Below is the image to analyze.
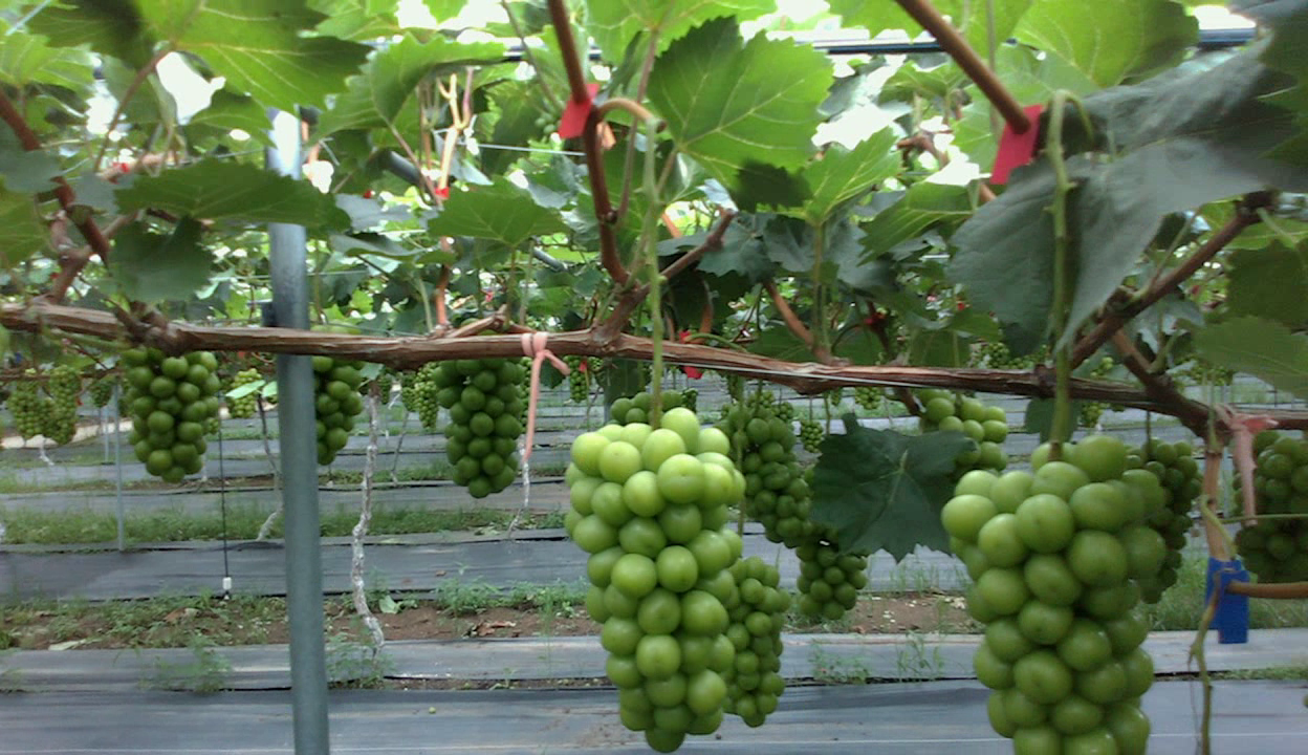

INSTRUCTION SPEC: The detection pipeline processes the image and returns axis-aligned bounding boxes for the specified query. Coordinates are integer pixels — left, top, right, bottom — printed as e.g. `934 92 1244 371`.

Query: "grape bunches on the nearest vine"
942 434 1164 754
563 408 746 752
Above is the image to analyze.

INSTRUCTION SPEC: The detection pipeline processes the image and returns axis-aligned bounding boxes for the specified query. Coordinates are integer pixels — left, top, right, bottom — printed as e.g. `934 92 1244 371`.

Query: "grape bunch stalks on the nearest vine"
595 96 663 429
1046 89 1098 445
